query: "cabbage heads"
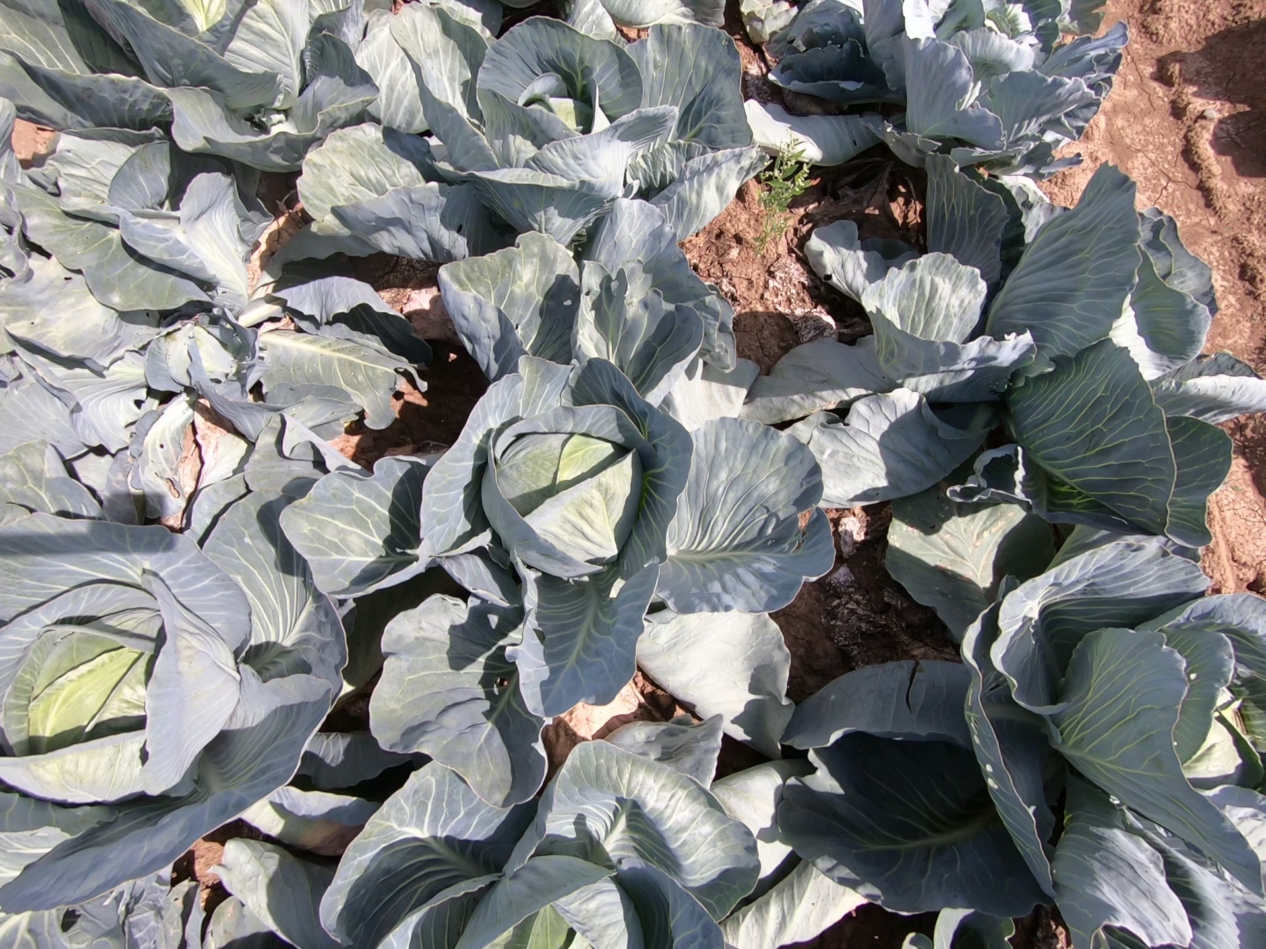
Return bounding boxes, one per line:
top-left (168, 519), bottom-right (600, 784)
top-left (926, 14), bottom-right (1008, 93)
top-left (491, 419), bottom-right (642, 561)
top-left (508, 97), bottom-right (617, 202)
top-left (1, 604), bottom-right (214, 801)
top-left (1102, 647), bottom-right (1255, 813)
top-left (456, 853), bottom-right (646, 948)
top-left (123, 1), bottom-right (269, 89)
